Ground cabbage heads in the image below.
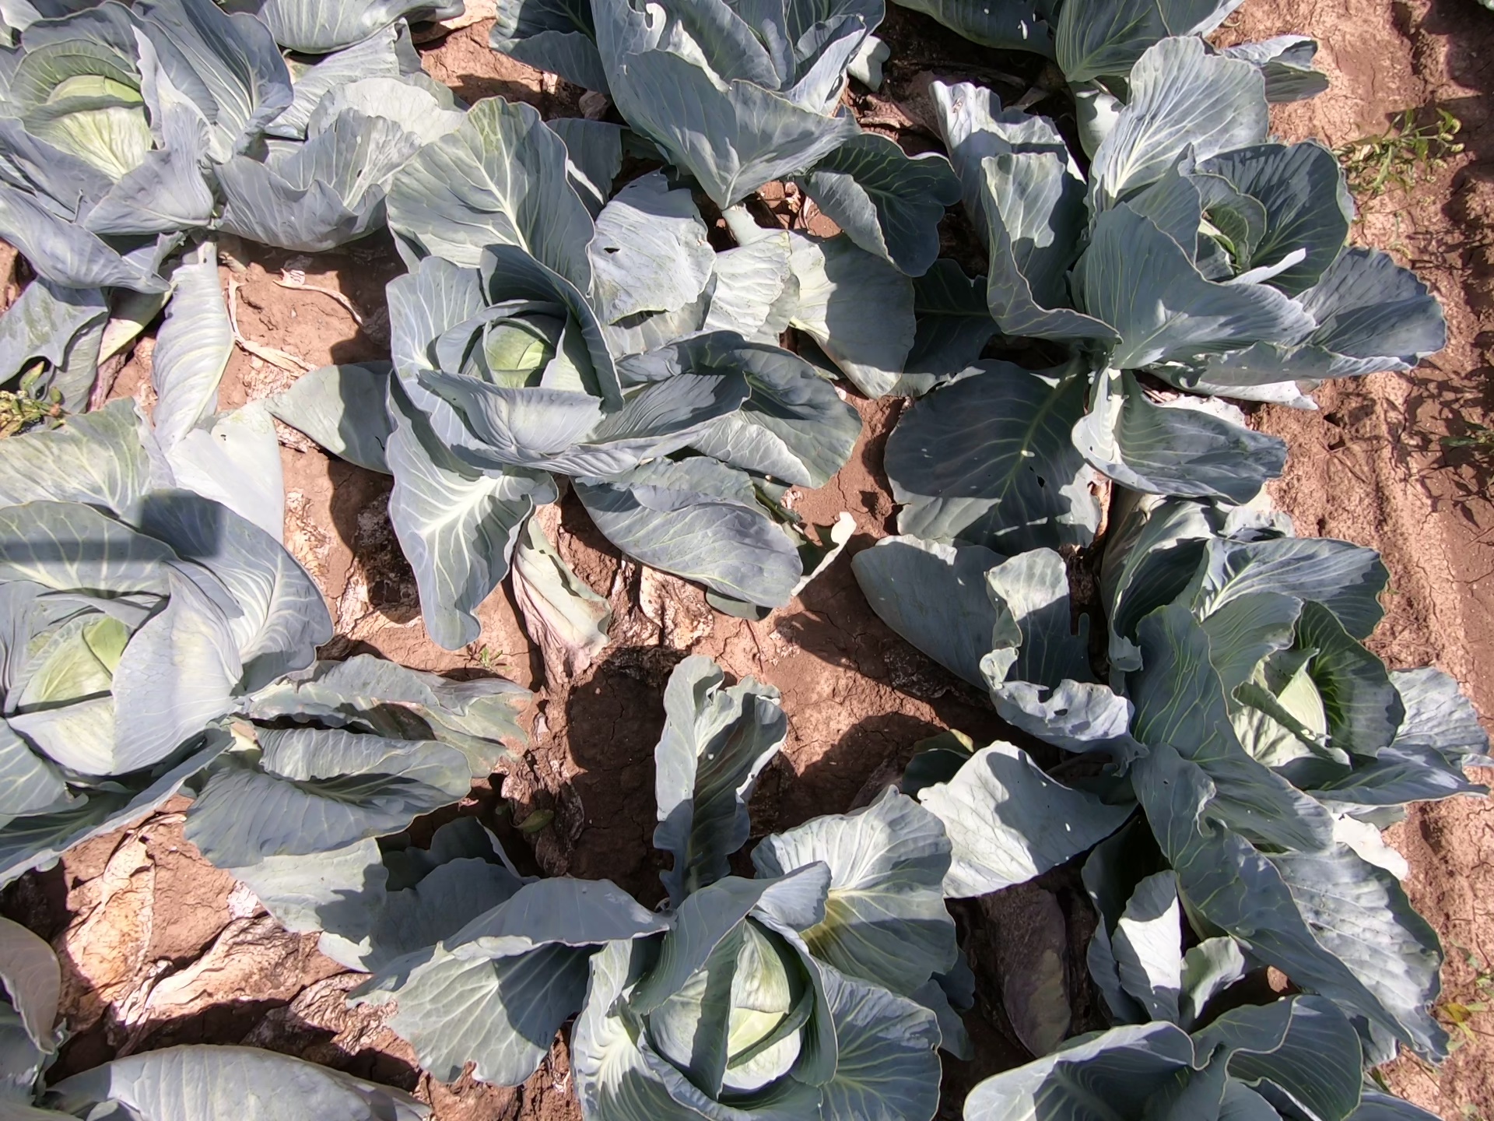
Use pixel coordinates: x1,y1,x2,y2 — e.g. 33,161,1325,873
460,313,600,448
1101,198,1240,310
1170,633,1329,792
650,922,811,1097
12,593,212,774
35,75,155,188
